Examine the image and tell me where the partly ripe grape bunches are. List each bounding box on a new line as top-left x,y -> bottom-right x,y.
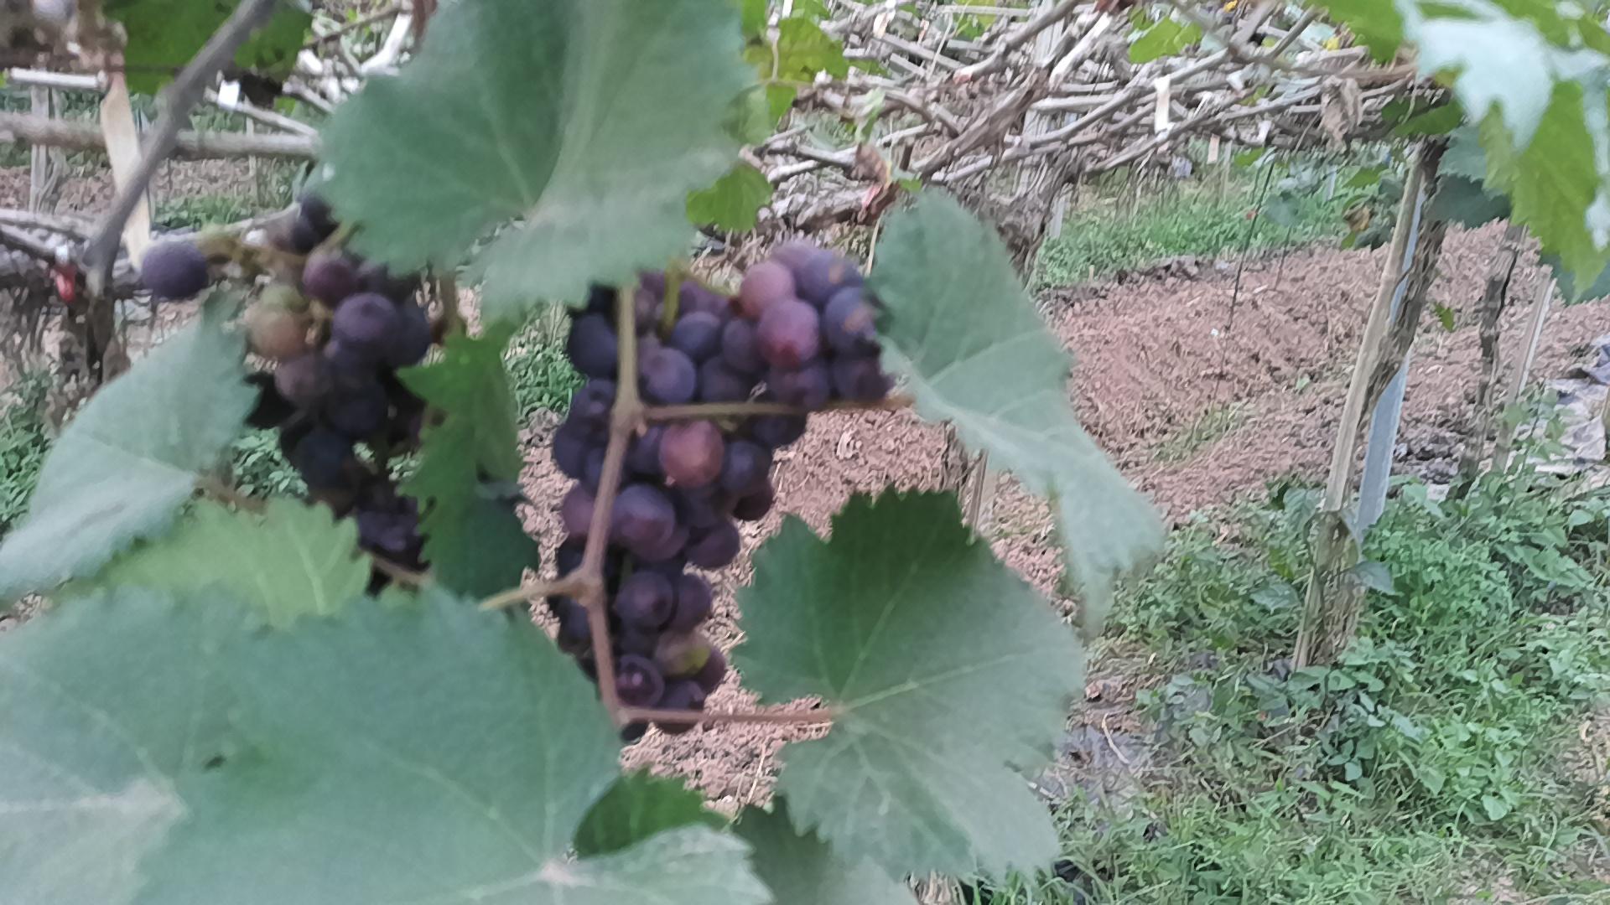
141,192 -> 445,595
542,241 -> 893,741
